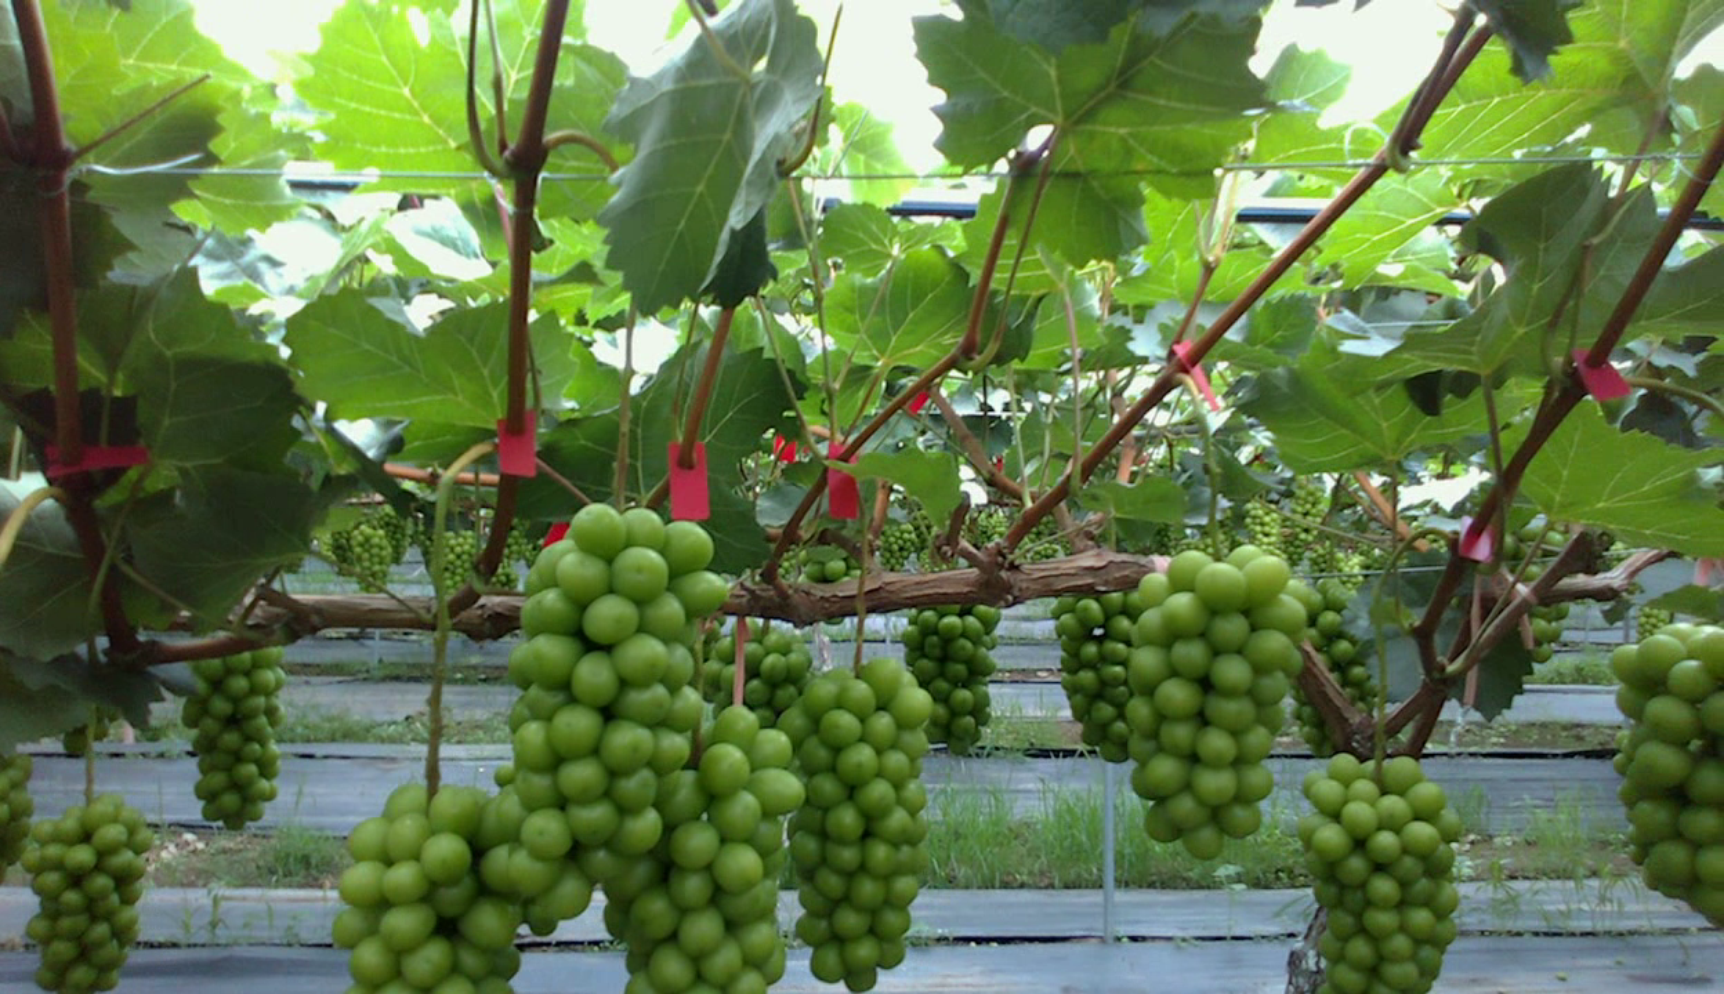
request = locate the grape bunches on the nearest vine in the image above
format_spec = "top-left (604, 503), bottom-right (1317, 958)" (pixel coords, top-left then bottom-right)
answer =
top-left (332, 783), bottom-right (524, 993)
top-left (1608, 623), bottom-right (1723, 921)
top-left (472, 501), bottom-right (728, 935)
top-left (1126, 544), bottom-right (1310, 860)
top-left (774, 657), bottom-right (934, 993)
top-left (1297, 754), bottom-right (1463, 993)
top-left (601, 705), bottom-right (804, 993)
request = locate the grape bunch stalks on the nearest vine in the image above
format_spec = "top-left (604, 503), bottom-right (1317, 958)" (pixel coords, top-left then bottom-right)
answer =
top-left (1177, 373), bottom-right (1223, 562)
top-left (1372, 526), bottom-right (1450, 792)
top-left (425, 436), bottom-right (496, 815)
top-left (550, 130), bottom-right (641, 514)
top-left (854, 508), bottom-right (868, 678)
